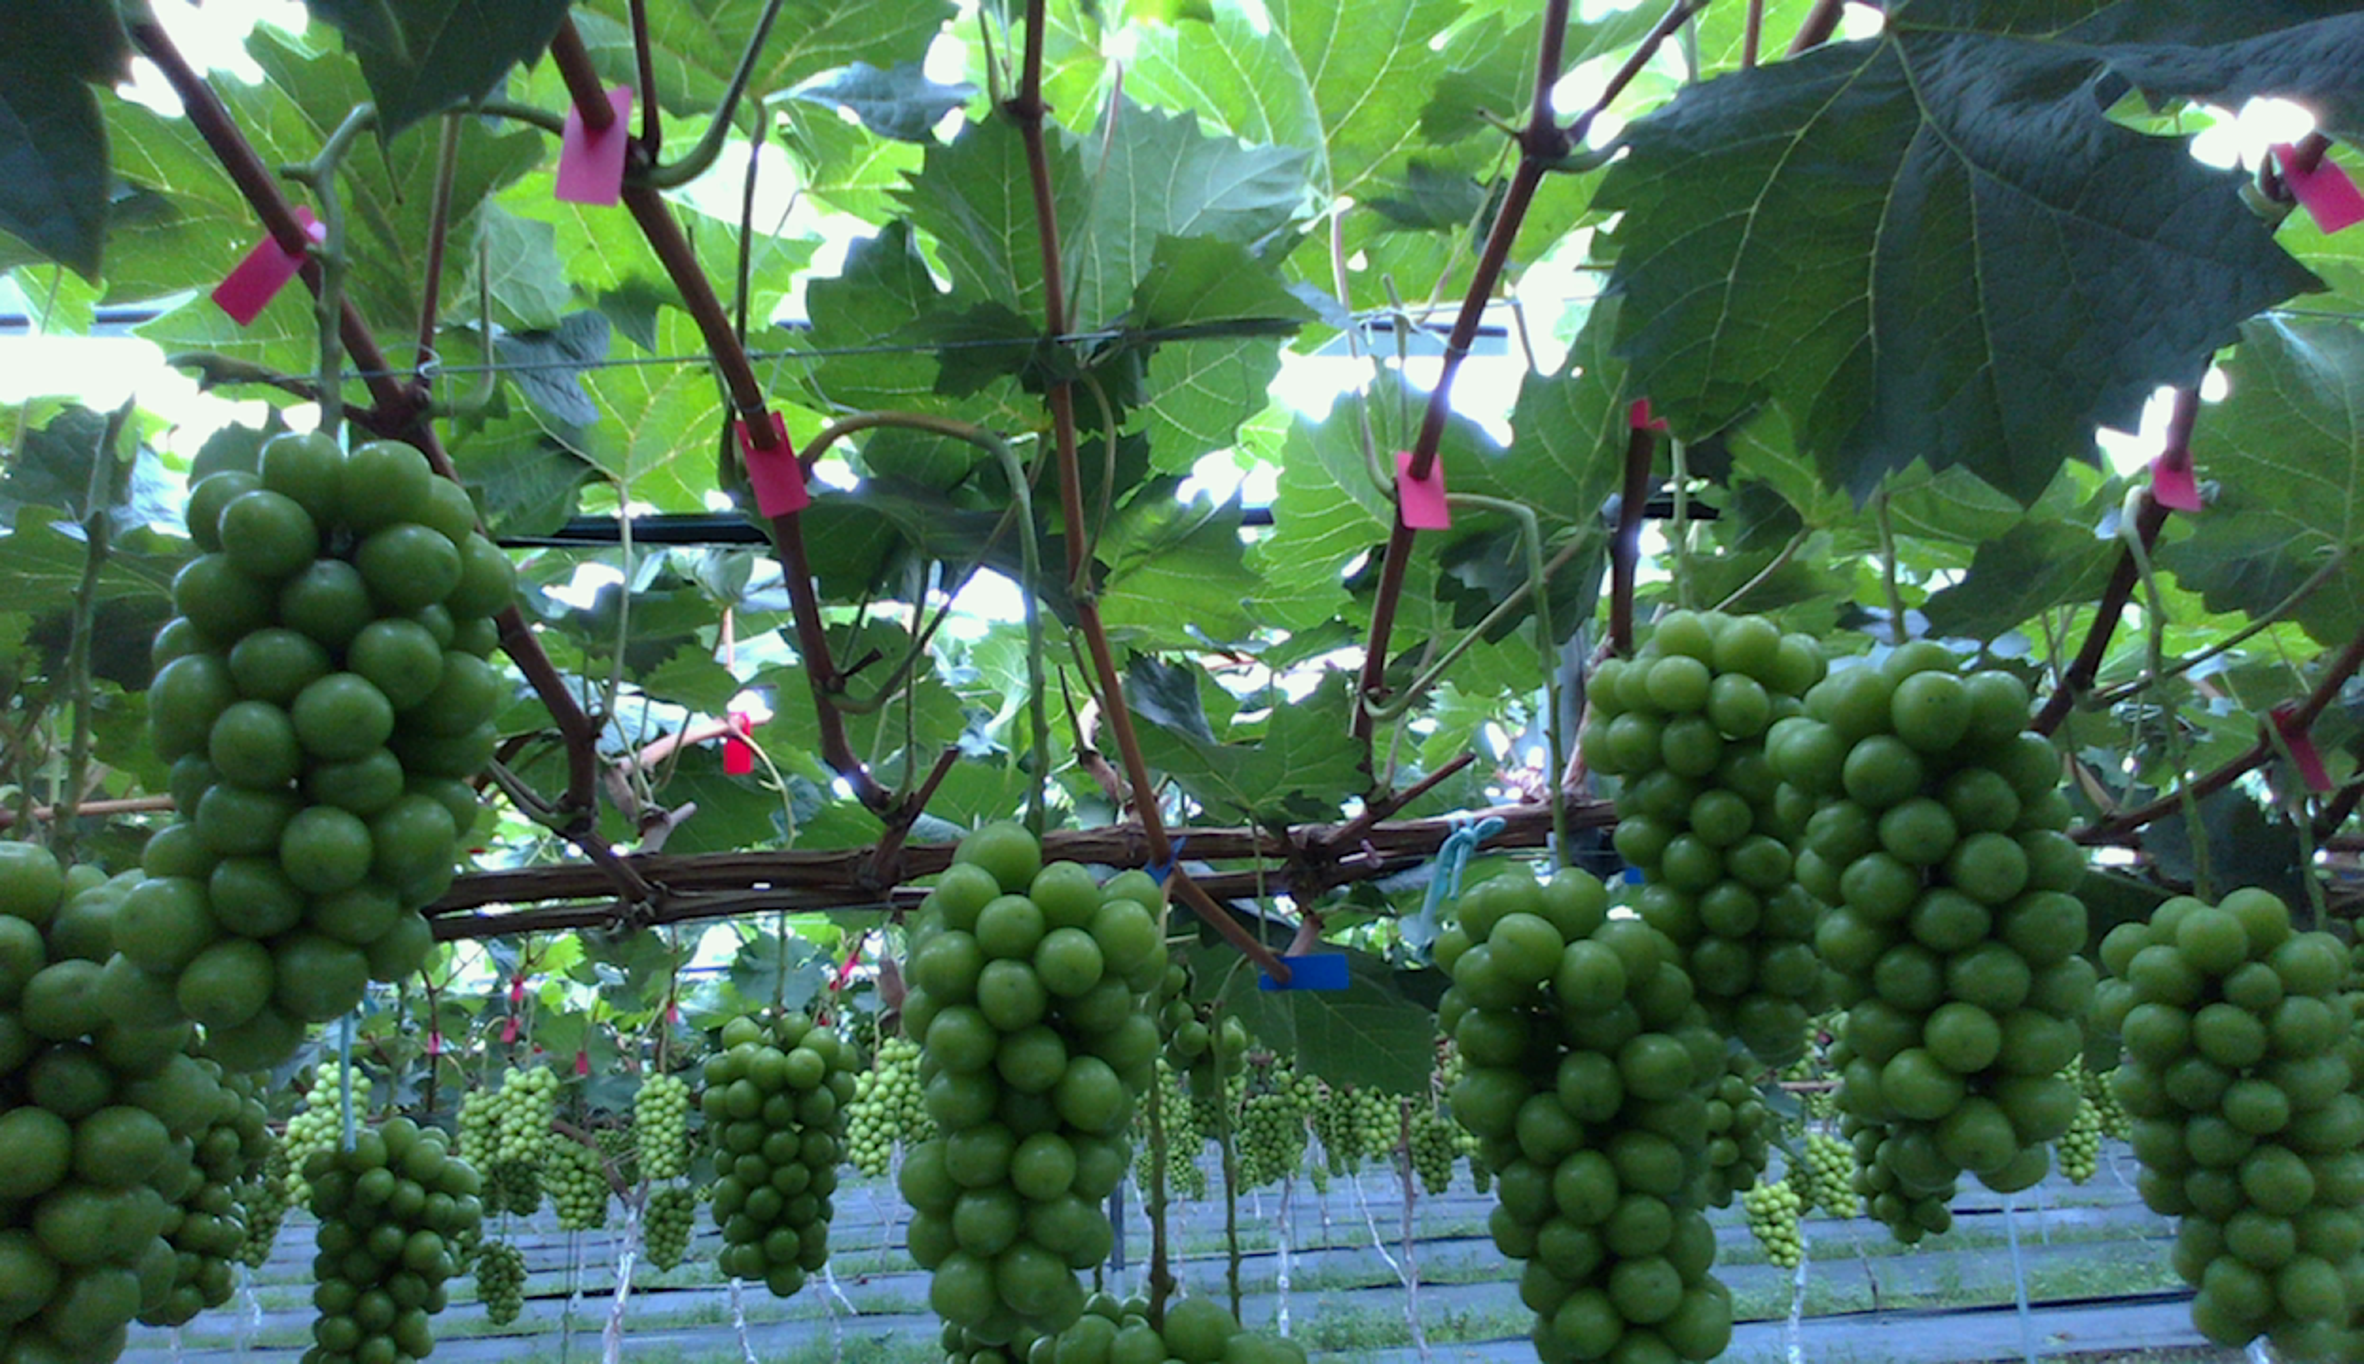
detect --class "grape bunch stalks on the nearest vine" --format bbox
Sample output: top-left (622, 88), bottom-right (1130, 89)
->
top-left (1445, 493), bottom-right (1568, 870)
top-left (280, 102), bottom-right (566, 440)
top-left (2120, 481), bottom-right (2211, 902)
top-left (801, 407), bottom-right (1051, 839)
top-left (1669, 440), bottom-right (1693, 606)
top-left (49, 400), bottom-right (136, 864)
top-left (1146, 985), bottom-right (1174, 1324)
top-left (1870, 483), bottom-right (1909, 644)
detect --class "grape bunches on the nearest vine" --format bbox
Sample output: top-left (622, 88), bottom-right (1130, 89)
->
top-left (98, 436), bottom-right (517, 1076)
top-left (1044, 1296), bottom-right (1305, 1362)
top-left (896, 818), bottom-right (1167, 1345)
top-left (0, 839), bottom-right (208, 1362)
top-left (1767, 640), bottom-right (2097, 1193)
top-left (1428, 868), bottom-right (1737, 1362)
top-left (2101, 890), bottom-right (2362, 1362)
top-left (1578, 610), bottom-right (1830, 1072)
